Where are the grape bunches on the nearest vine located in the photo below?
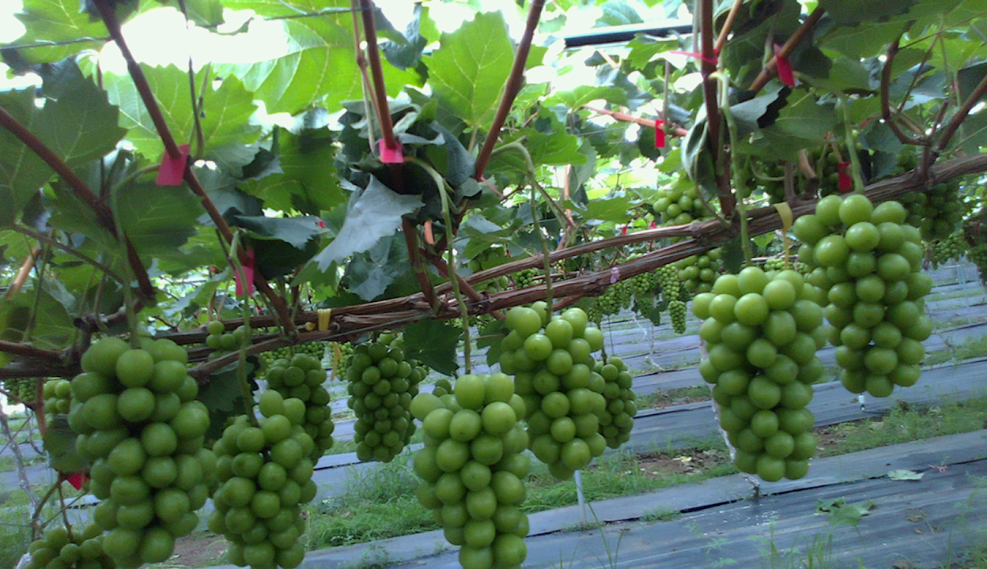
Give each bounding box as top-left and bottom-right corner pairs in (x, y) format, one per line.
(410, 373), (530, 568)
(67, 337), (216, 568)
(500, 300), (606, 478)
(691, 266), (828, 482)
(792, 194), (932, 396)
(208, 389), (316, 567)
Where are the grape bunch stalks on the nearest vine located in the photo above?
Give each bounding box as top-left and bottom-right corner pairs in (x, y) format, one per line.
(792, 71), (864, 194)
(108, 163), (161, 347)
(706, 70), (752, 266)
(228, 230), (258, 427)
(489, 141), (552, 324)
(403, 156), (471, 373)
